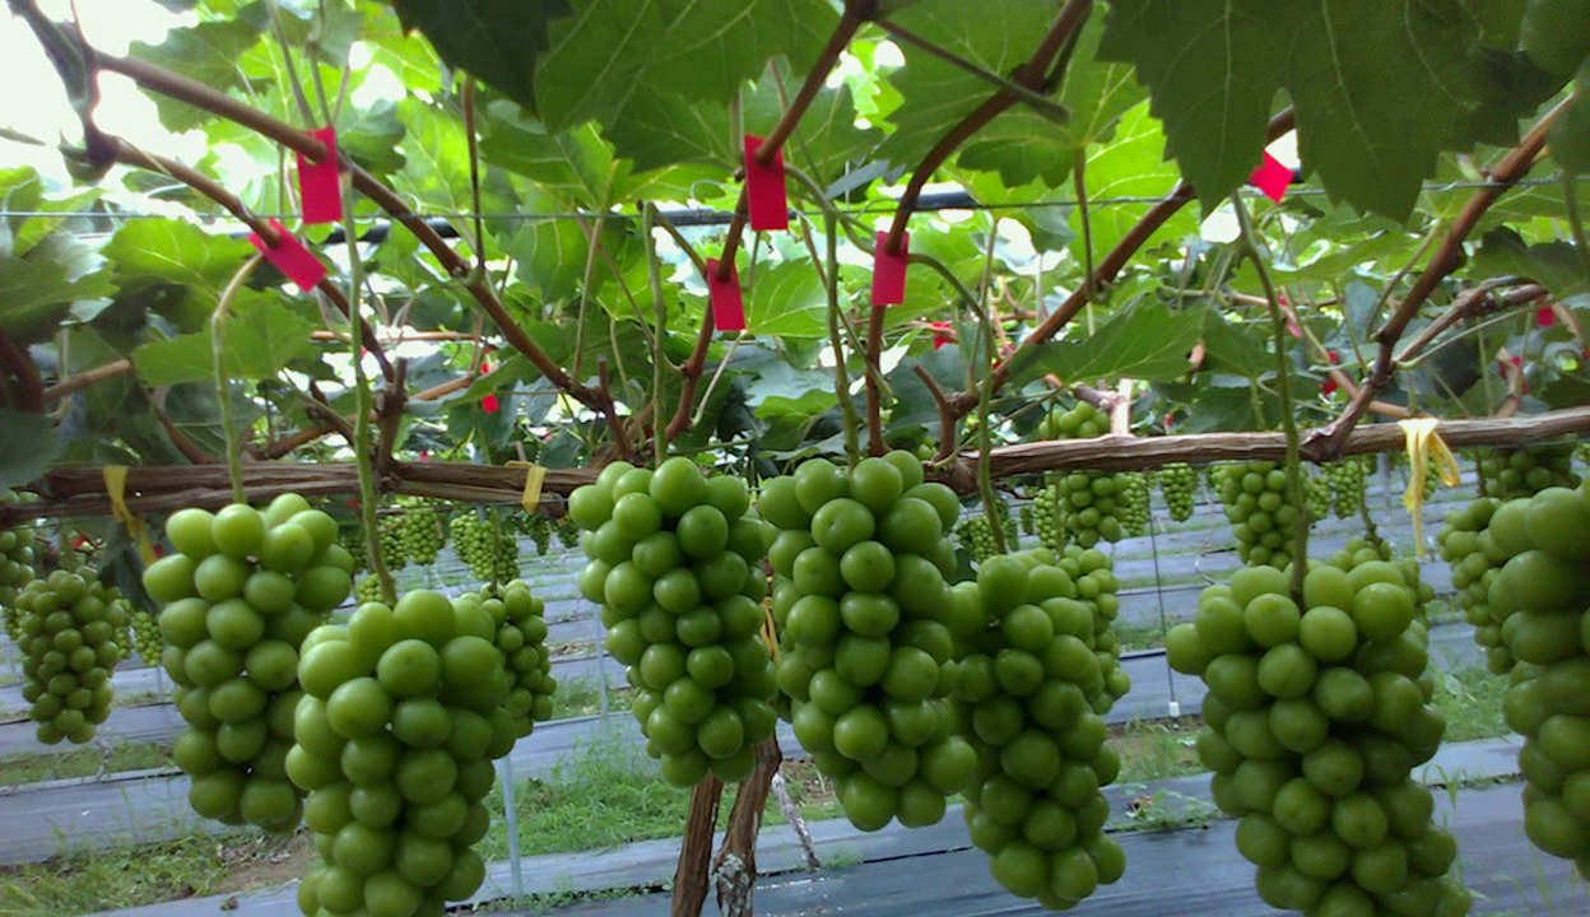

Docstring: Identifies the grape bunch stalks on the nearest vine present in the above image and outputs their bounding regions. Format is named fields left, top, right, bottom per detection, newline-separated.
left=210, top=252, right=264, bottom=499
left=341, top=172, right=399, bottom=610
left=642, top=200, right=668, bottom=470
left=1228, top=185, right=1307, bottom=594
left=782, top=163, right=859, bottom=469
left=907, top=253, right=1006, bottom=554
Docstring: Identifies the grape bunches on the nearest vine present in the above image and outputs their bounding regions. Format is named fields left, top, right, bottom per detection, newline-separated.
left=284, top=588, right=516, bottom=914
left=568, top=456, right=778, bottom=792
left=1163, top=560, right=1473, bottom=916
left=1488, top=475, right=1589, bottom=881
left=757, top=451, right=978, bottom=832
left=144, top=490, right=354, bottom=833
left=949, top=553, right=1124, bottom=909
